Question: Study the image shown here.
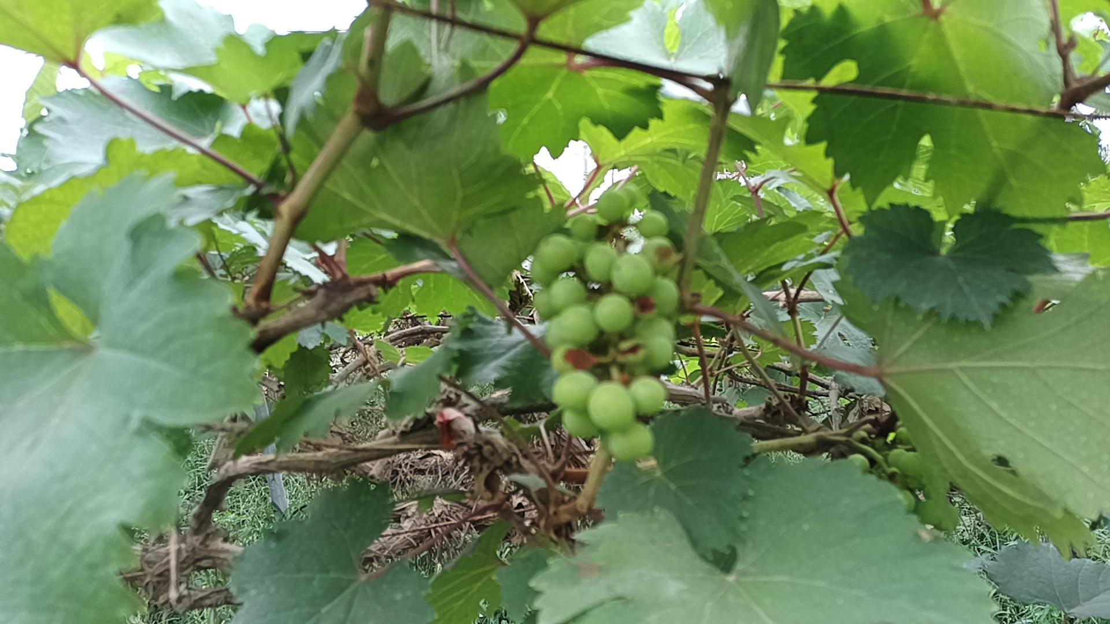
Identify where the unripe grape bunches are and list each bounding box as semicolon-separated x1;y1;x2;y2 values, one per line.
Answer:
531;188;679;460
847;426;959;531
